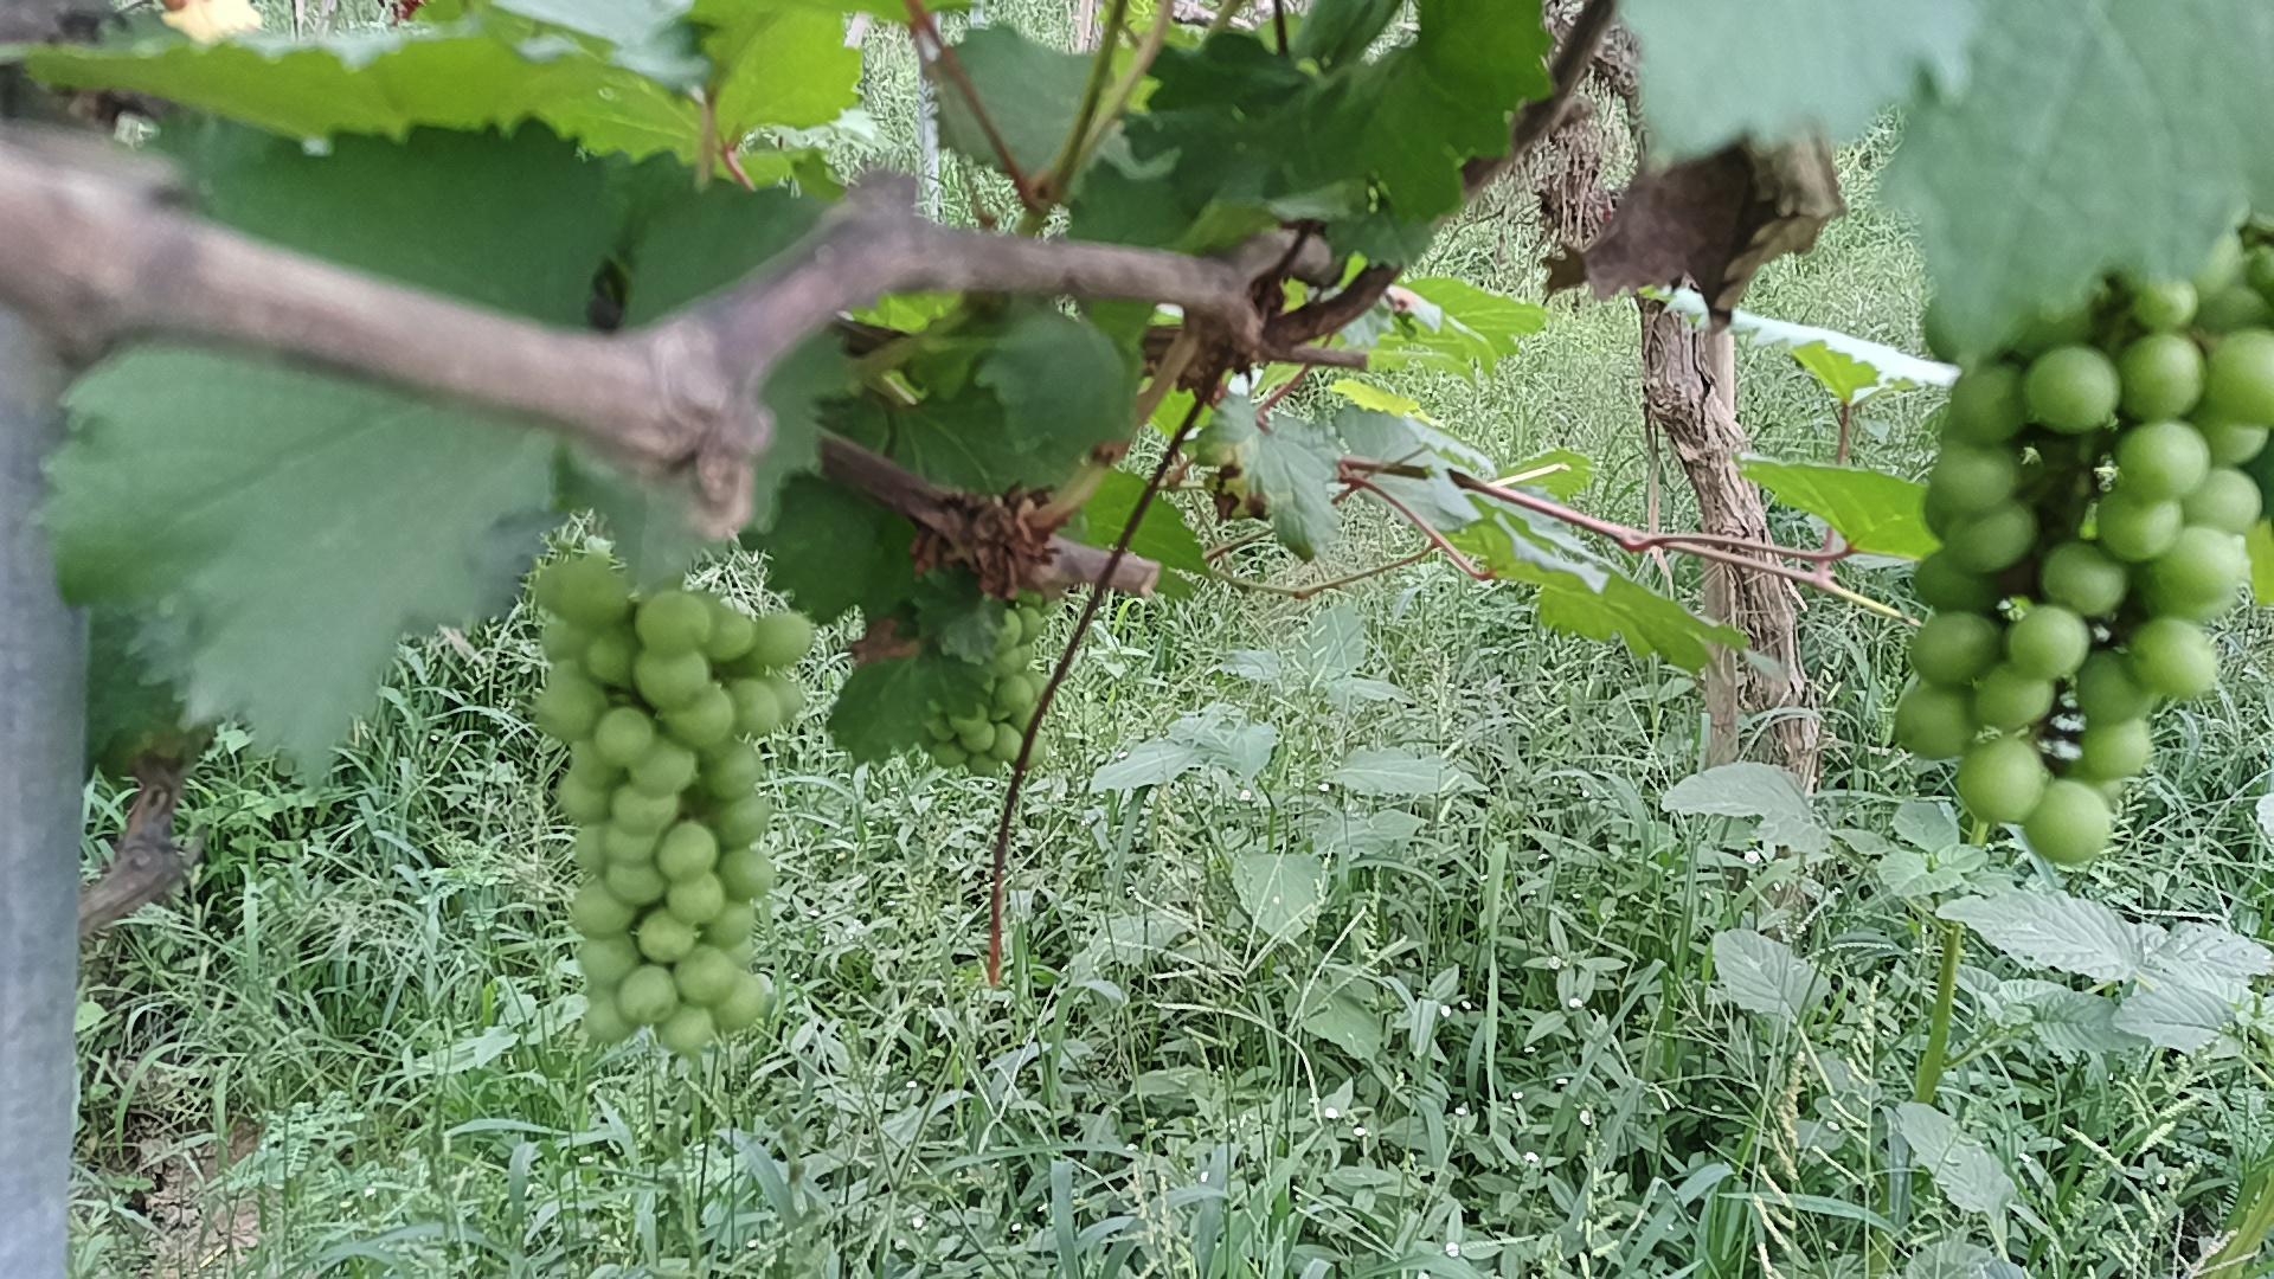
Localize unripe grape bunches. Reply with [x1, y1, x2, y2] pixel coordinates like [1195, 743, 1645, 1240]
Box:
[1895, 220, 2273, 863]
[927, 603, 1047, 776]
[532, 551, 811, 1052]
